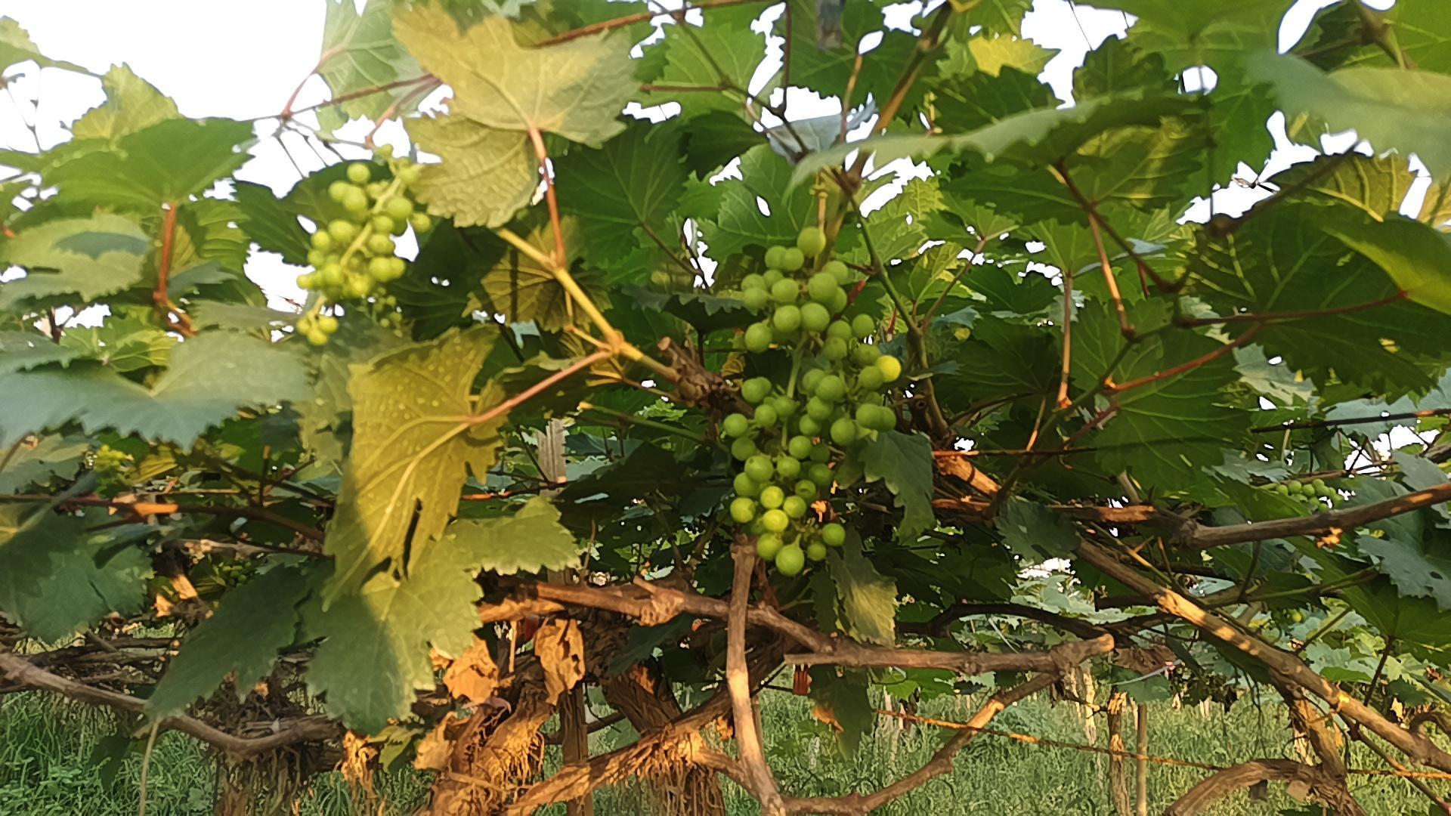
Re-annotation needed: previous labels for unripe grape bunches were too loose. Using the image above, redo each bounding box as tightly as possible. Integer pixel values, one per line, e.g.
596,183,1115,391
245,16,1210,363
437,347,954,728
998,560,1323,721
1275,478,1346,513
355,284,404,338
722,225,903,578
295,144,432,348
